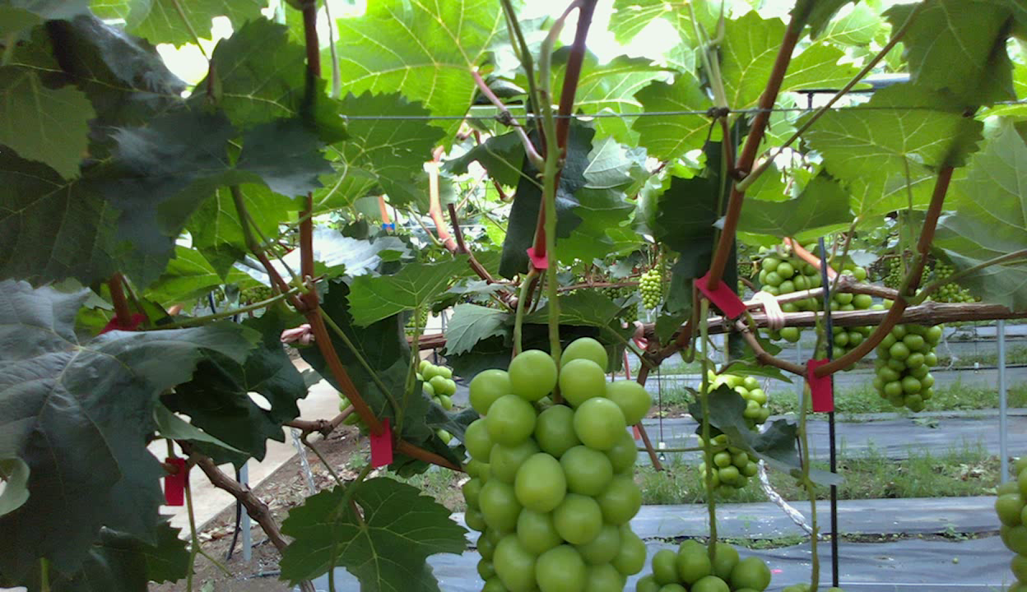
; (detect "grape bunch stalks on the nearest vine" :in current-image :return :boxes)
[699,301,717,576]
[537,1,575,369]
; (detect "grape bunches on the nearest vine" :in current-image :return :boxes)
[635,539,771,590]
[994,451,1026,591]
[462,337,653,590]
